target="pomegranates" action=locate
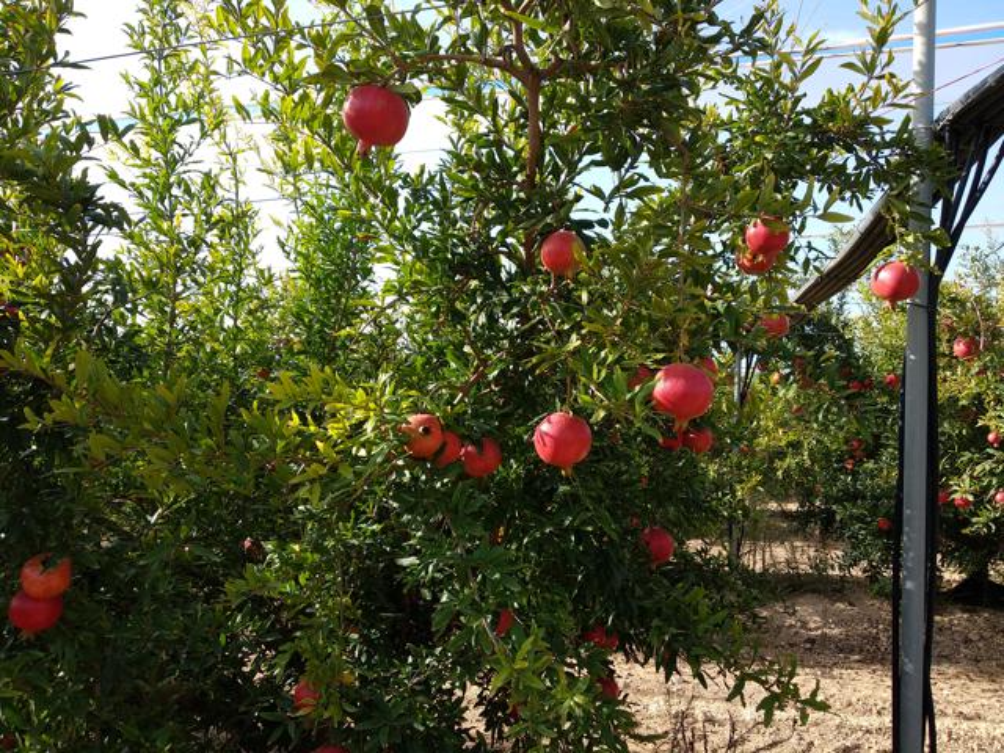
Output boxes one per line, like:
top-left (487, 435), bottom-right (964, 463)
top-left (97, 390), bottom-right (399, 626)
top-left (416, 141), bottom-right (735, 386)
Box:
top-left (627, 364), bottom-right (654, 391)
top-left (871, 260), bottom-right (921, 314)
top-left (431, 430), bottom-right (461, 467)
top-left (703, 356), bottom-right (717, 386)
top-left (739, 249), bottom-right (778, 275)
top-left (8, 590), bottom-right (67, 643)
top-left (762, 314), bottom-right (789, 336)
top-left (745, 220), bottom-right (791, 264)
top-left (293, 679), bottom-right (320, 709)
top-left (662, 427), bottom-right (711, 453)
top-left (344, 83), bottom-right (411, 155)
top-left (538, 229), bottom-right (579, 284)
top-left (640, 526), bottom-right (673, 573)
top-left (952, 336), bottom-right (980, 362)
top-left (582, 624), bottom-right (620, 649)
top-left (533, 411), bottom-right (593, 478)
top-left (496, 609), bottom-right (516, 635)
top-left (455, 436), bottom-right (502, 477)
top-left (402, 413), bottom-right (446, 458)
top-left (19, 554), bottom-right (74, 601)
top-left (312, 744), bottom-right (348, 753)
top-left (653, 362), bottom-right (715, 433)
top-left (598, 679), bottom-right (620, 698)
